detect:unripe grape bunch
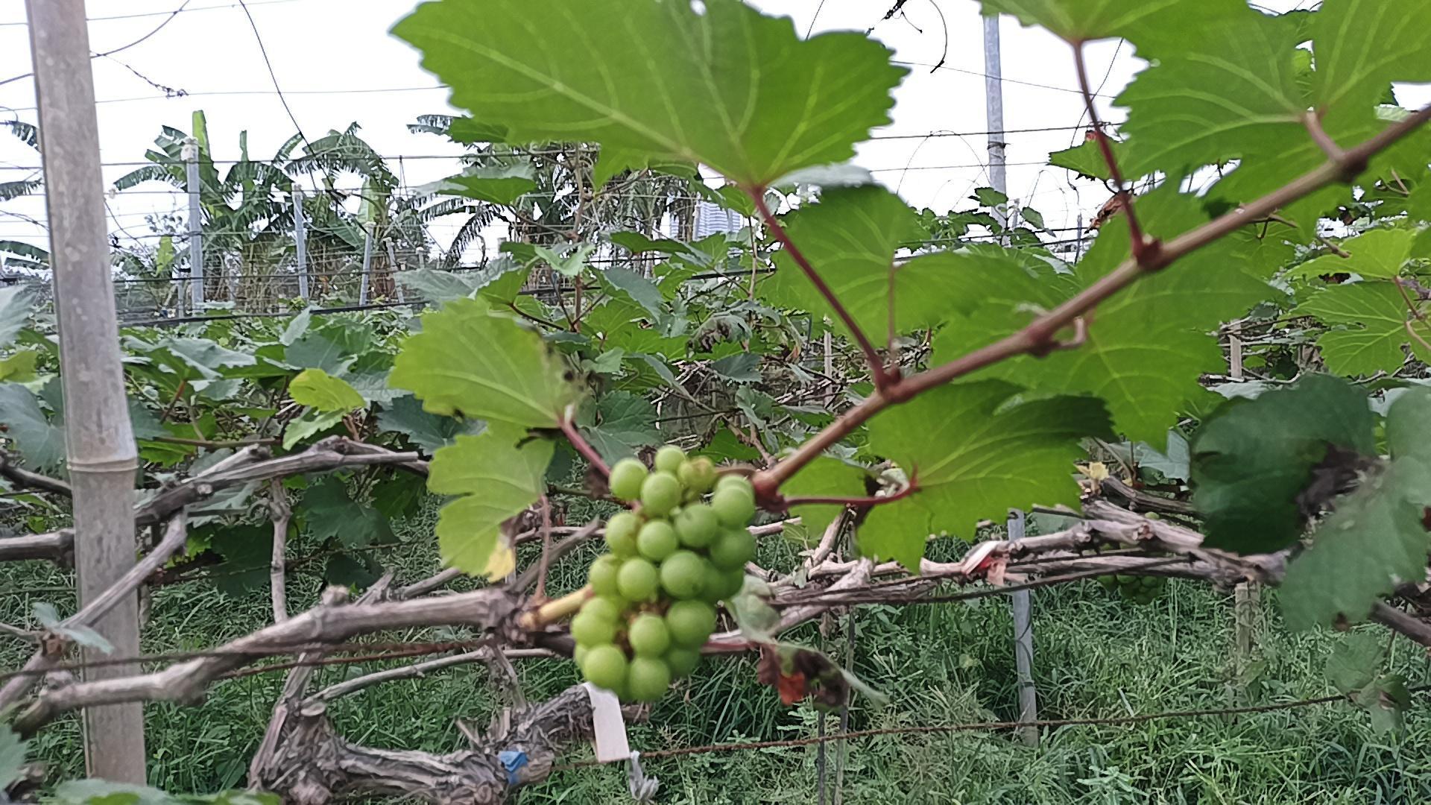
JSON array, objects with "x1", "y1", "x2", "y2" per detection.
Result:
[{"x1": 570, "y1": 446, "x2": 755, "y2": 704}]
